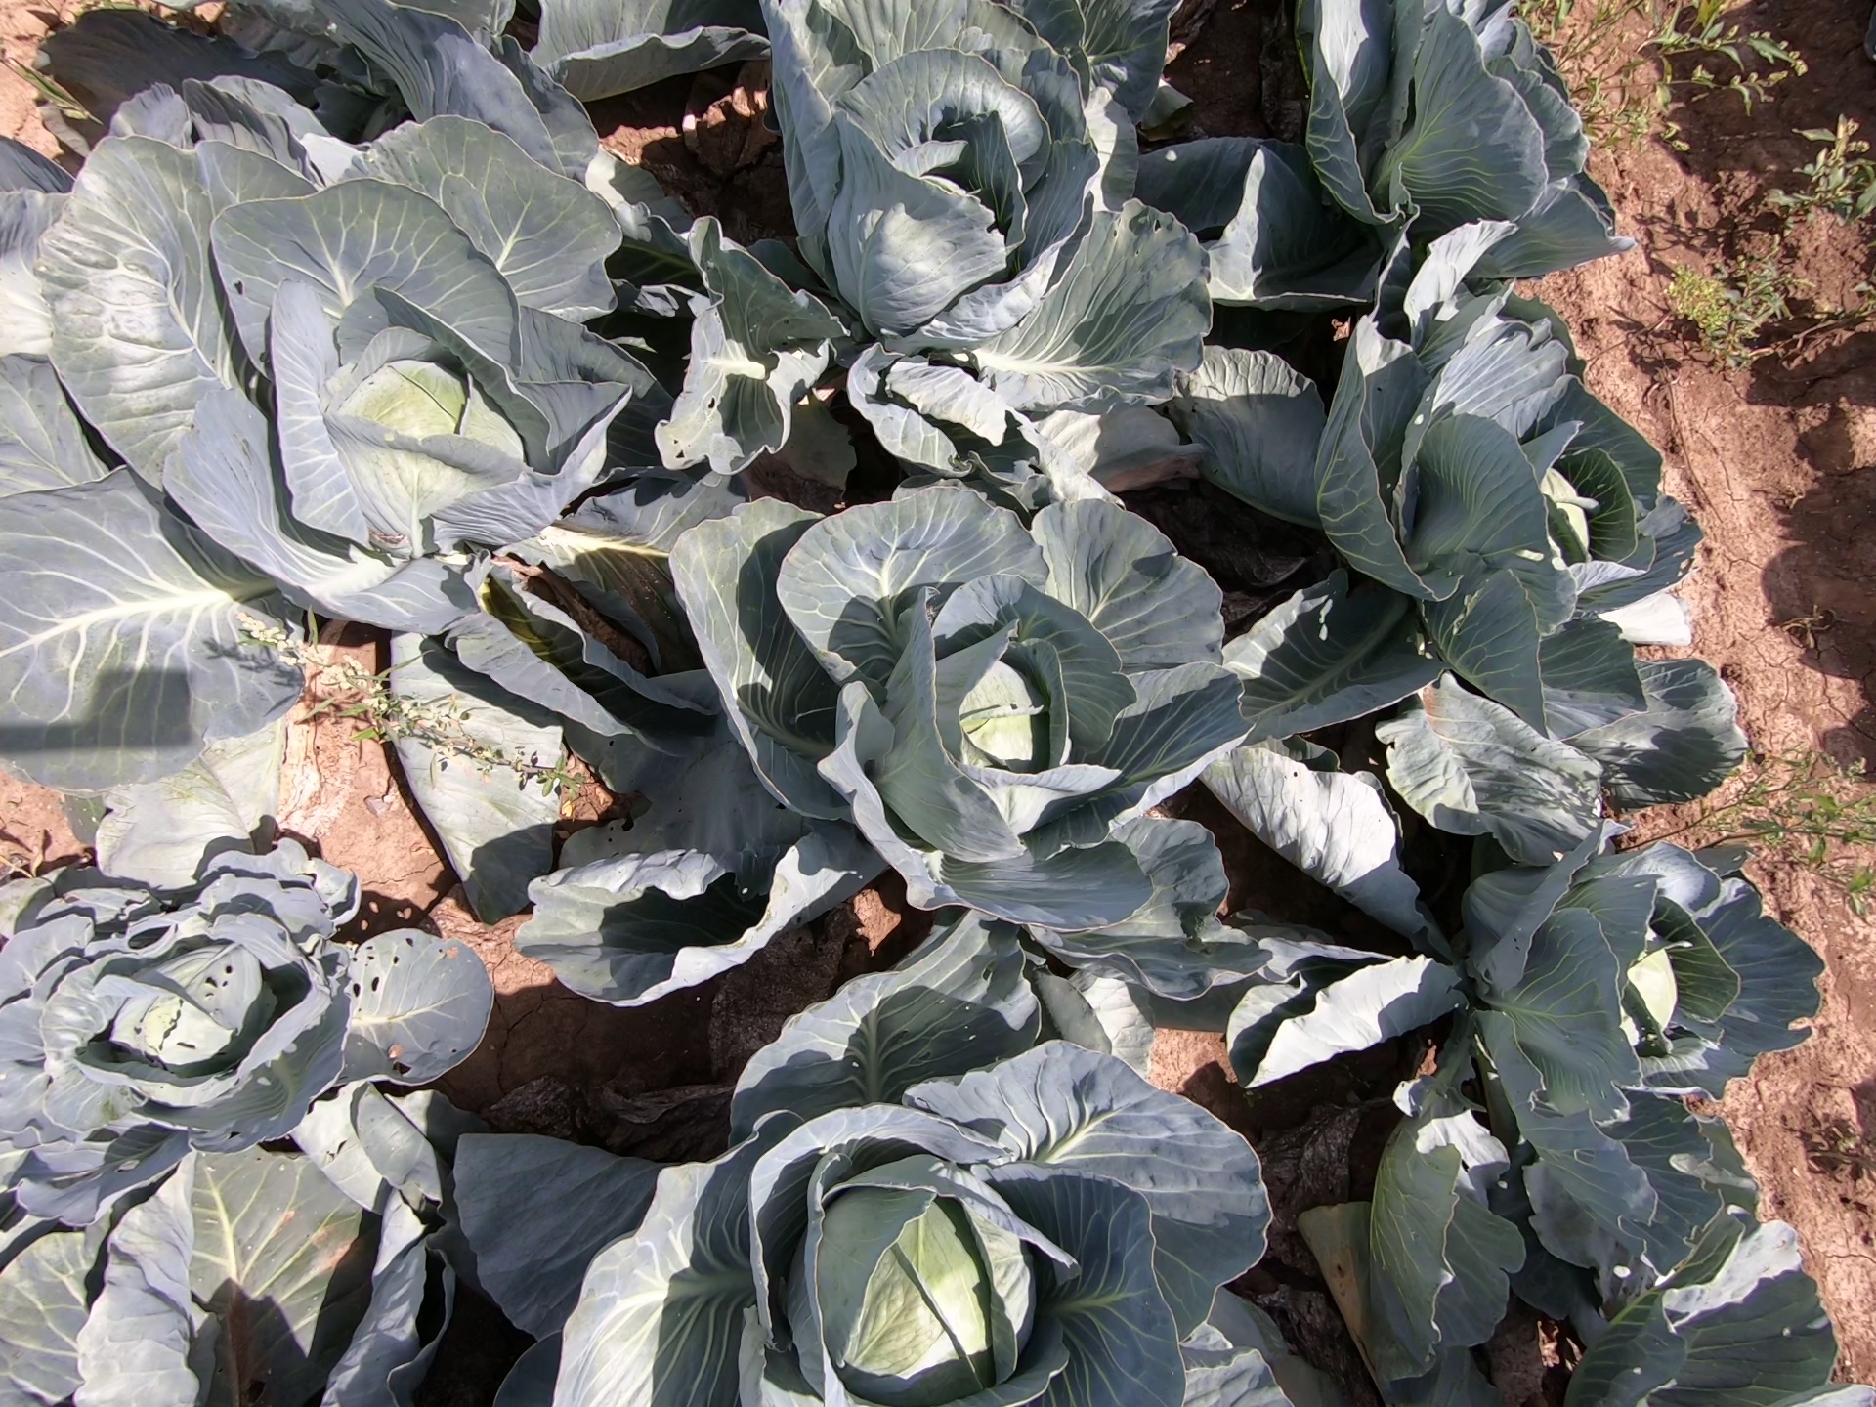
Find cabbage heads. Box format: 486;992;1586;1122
830;168;1003;333
316;359;518;557
893;652;1070;847
107;946;269;1100
1461;460;1595;587
1561;911;1678;1052
813;1174;1031;1398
